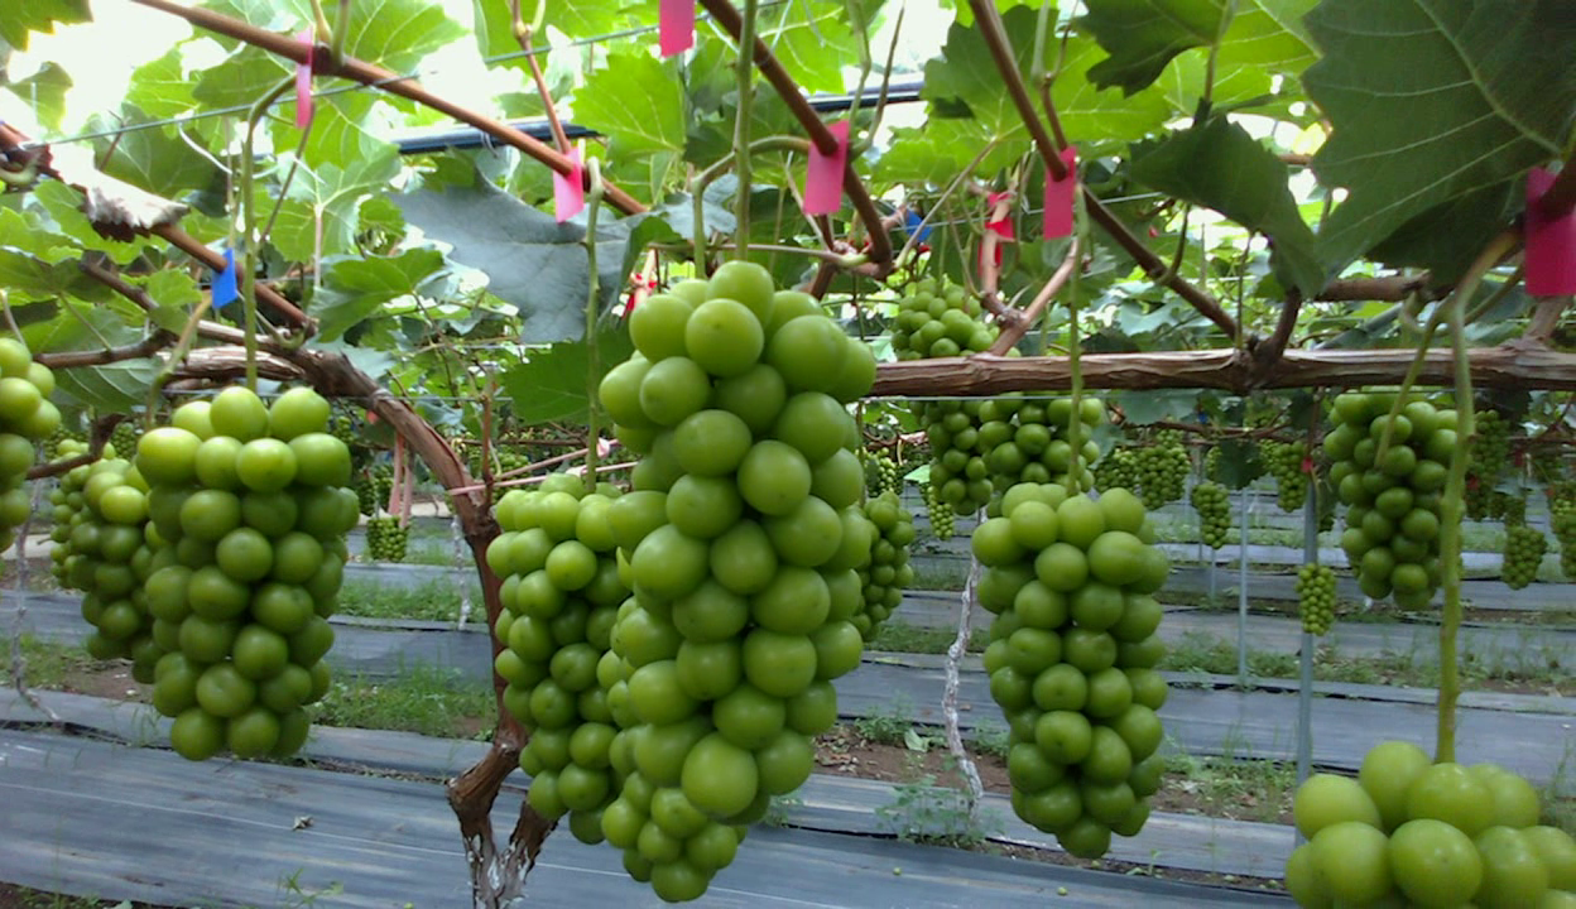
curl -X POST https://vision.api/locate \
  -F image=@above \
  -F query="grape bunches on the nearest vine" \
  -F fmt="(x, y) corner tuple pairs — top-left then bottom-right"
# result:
(971, 482), (1169, 857)
(0, 337), (61, 552)
(1283, 740), (1575, 908)
(68, 460), (164, 684)
(134, 386), (360, 763)
(599, 258), (878, 837)
(487, 472), (745, 901)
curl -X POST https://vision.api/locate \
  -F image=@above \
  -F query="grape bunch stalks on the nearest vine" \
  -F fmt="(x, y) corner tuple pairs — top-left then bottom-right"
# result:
(1066, 186), (1087, 497)
(684, 135), (809, 280)
(242, 69), (295, 393)
(1433, 218), (1522, 765)
(731, 0), (756, 261)
(582, 162), (602, 495)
